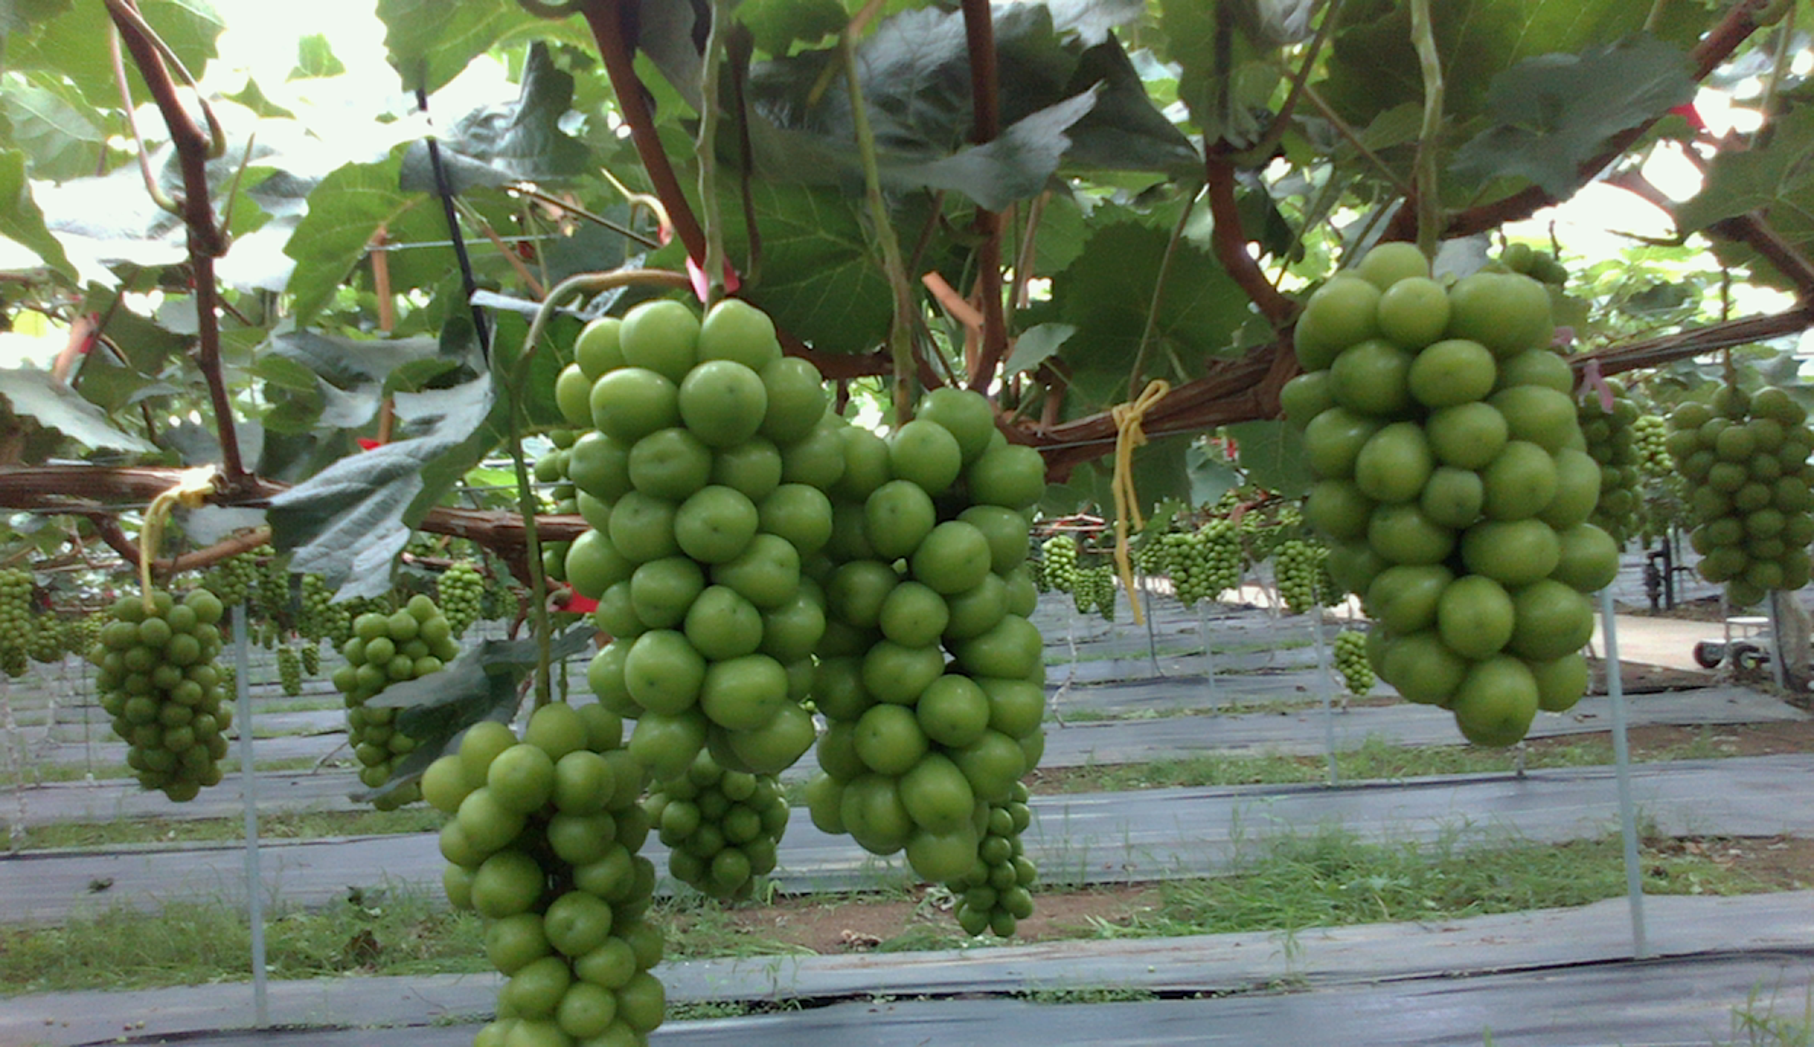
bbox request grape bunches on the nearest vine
[811,385,1047,883]
[552,300,849,781]
[1282,238,1624,745]
[420,701,669,1046]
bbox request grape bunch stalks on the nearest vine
[1411,1,1445,252]
[506,269,685,710]
[695,0,727,313]
[813,1,914,428]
